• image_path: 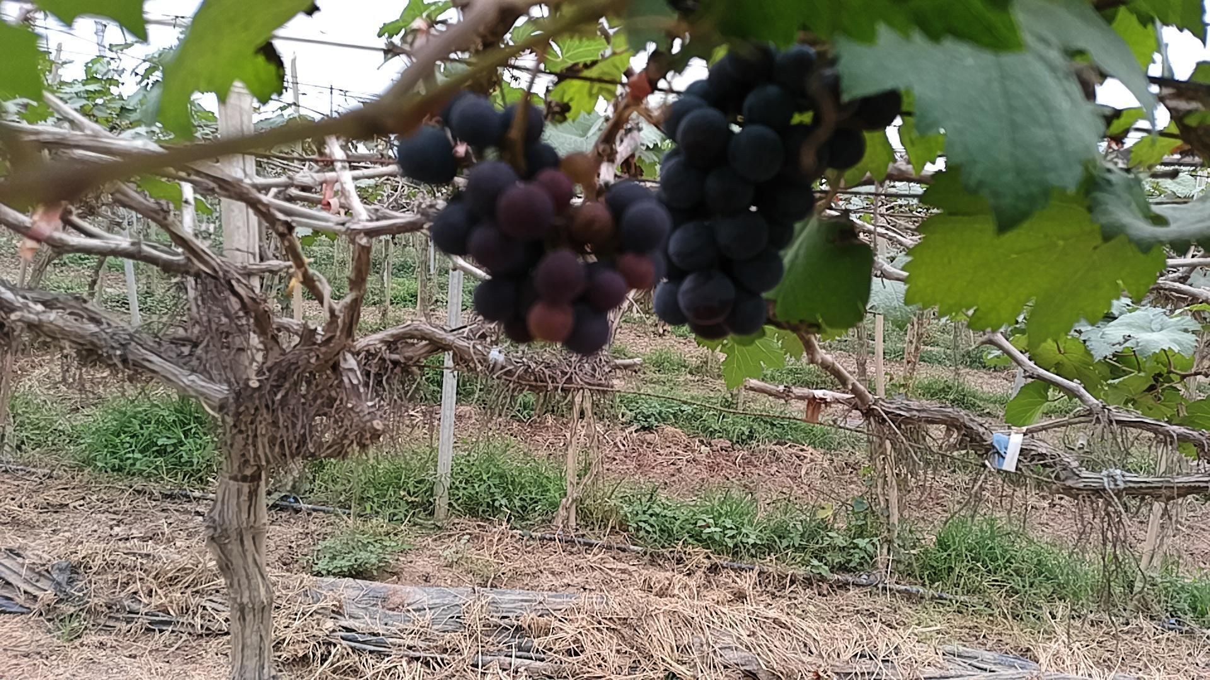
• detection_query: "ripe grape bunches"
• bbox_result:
[654,45,900,339]
[396,88,670,357]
